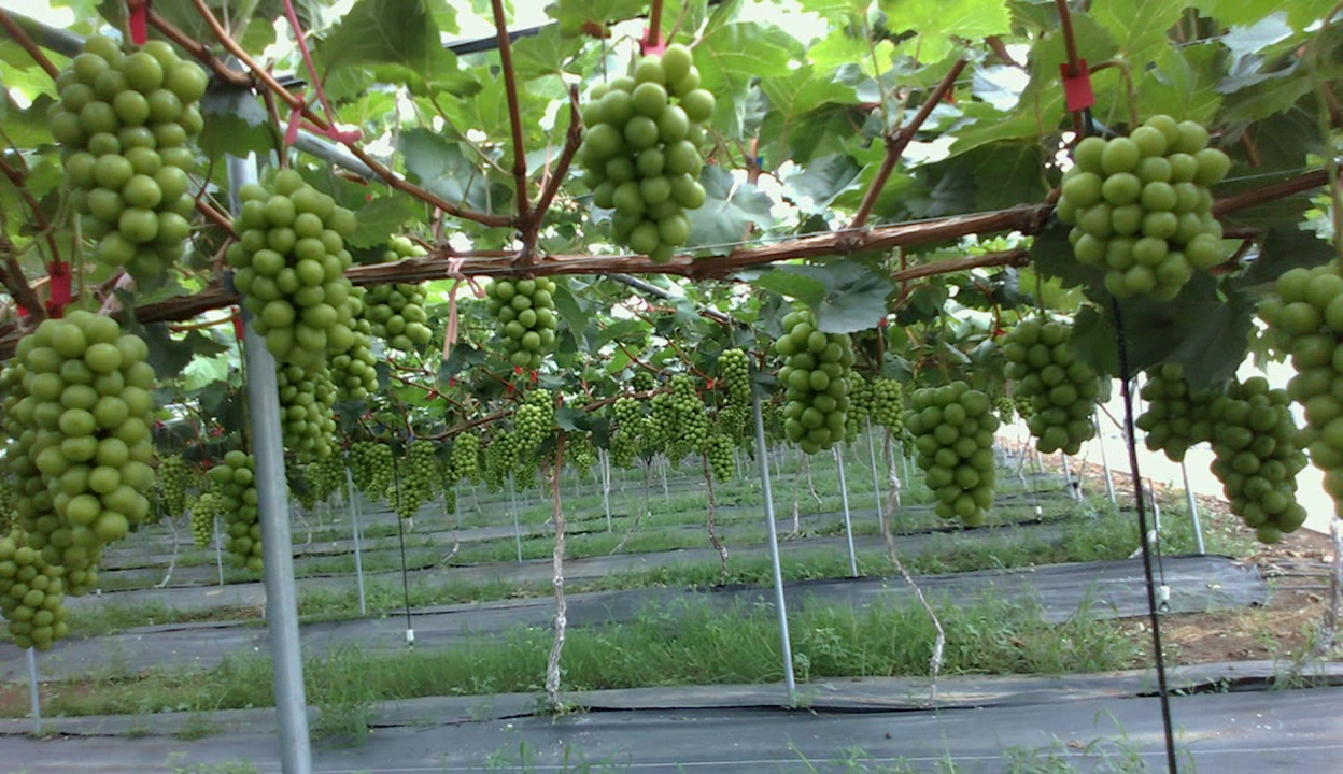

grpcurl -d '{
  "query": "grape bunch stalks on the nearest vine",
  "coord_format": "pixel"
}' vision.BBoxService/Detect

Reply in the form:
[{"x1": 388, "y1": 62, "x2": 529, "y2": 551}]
[
  {"x1": 280, "y1": 142, "x2": 292, "y2": 166},
  {"x1": 74, "y1": 212, "x2": 87, "y2": 306},
  {"x1": 117, "y1": 1, "x2": 136, "y2": 55},
  {"x1": 1088, "y1": 57, "x2": 1139, "y2": 129},
  {"x1": 1307, "y1": 1, "x2": 1342, "y2": 256}
]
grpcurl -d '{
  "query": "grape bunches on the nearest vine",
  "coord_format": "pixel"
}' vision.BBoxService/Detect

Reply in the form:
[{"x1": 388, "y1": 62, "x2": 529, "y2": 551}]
[
  {"x1": 1259, "y1": 261, "x2": 1342, "y2": 519},
  {"x1": 228, "y1": 167, "x2": 355, "y2": 371},
  {"x1": 48, "y1": 34, "x2": 209, "y2": 278},
  {"x1": 1059, "y1": 114, "x2": 1230, "y2": 301},
  {"x1": 15, "y1": 309, "x2": 156, "y2": 553},
  {"x1": 578, "y1": 44, "x2": 715, "y2": 264}
]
